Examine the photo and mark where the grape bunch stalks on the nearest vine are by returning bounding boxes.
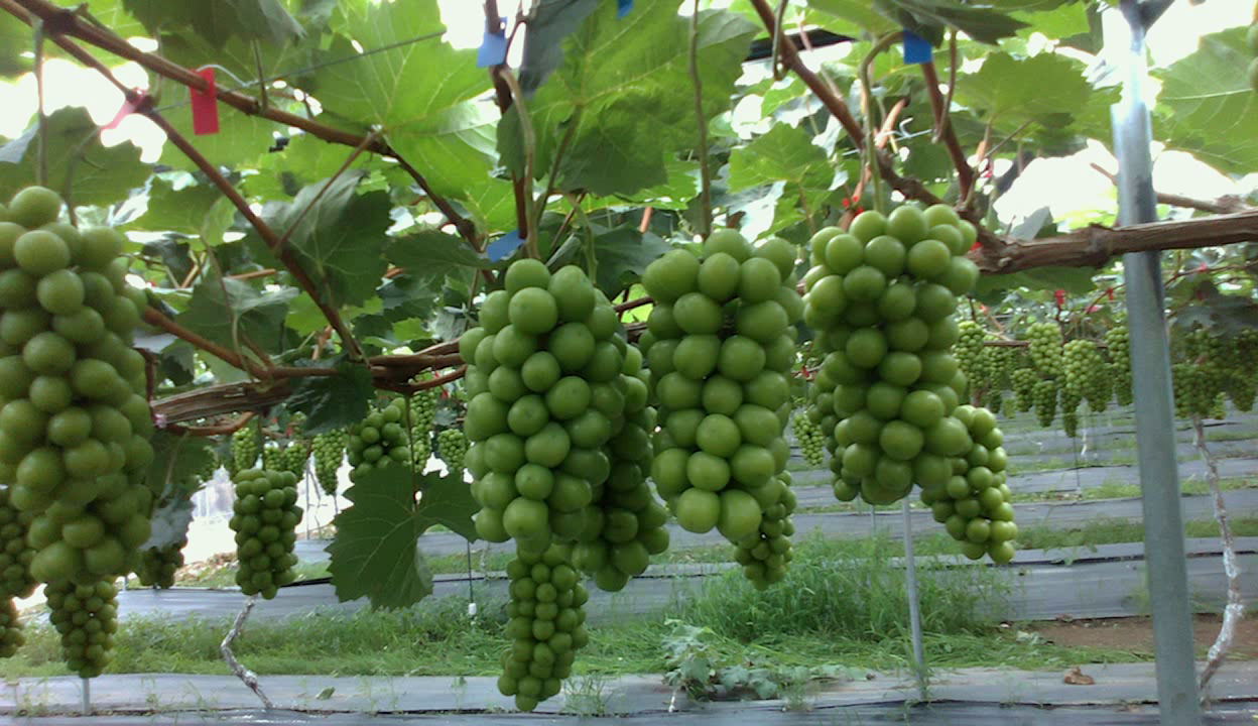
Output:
[504,72,539,257]
[862,30,903,211]
[62,128,105,226]
[559,192,597,281]
[33,22,47,183]
[689,1,713,236]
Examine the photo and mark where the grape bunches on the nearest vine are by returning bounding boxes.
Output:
[0,188,131,510]
[639,229,802,540]
[572,346,670,595]
[28,224,154,586]
[461,257,627,551]
[799,205,976,506]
